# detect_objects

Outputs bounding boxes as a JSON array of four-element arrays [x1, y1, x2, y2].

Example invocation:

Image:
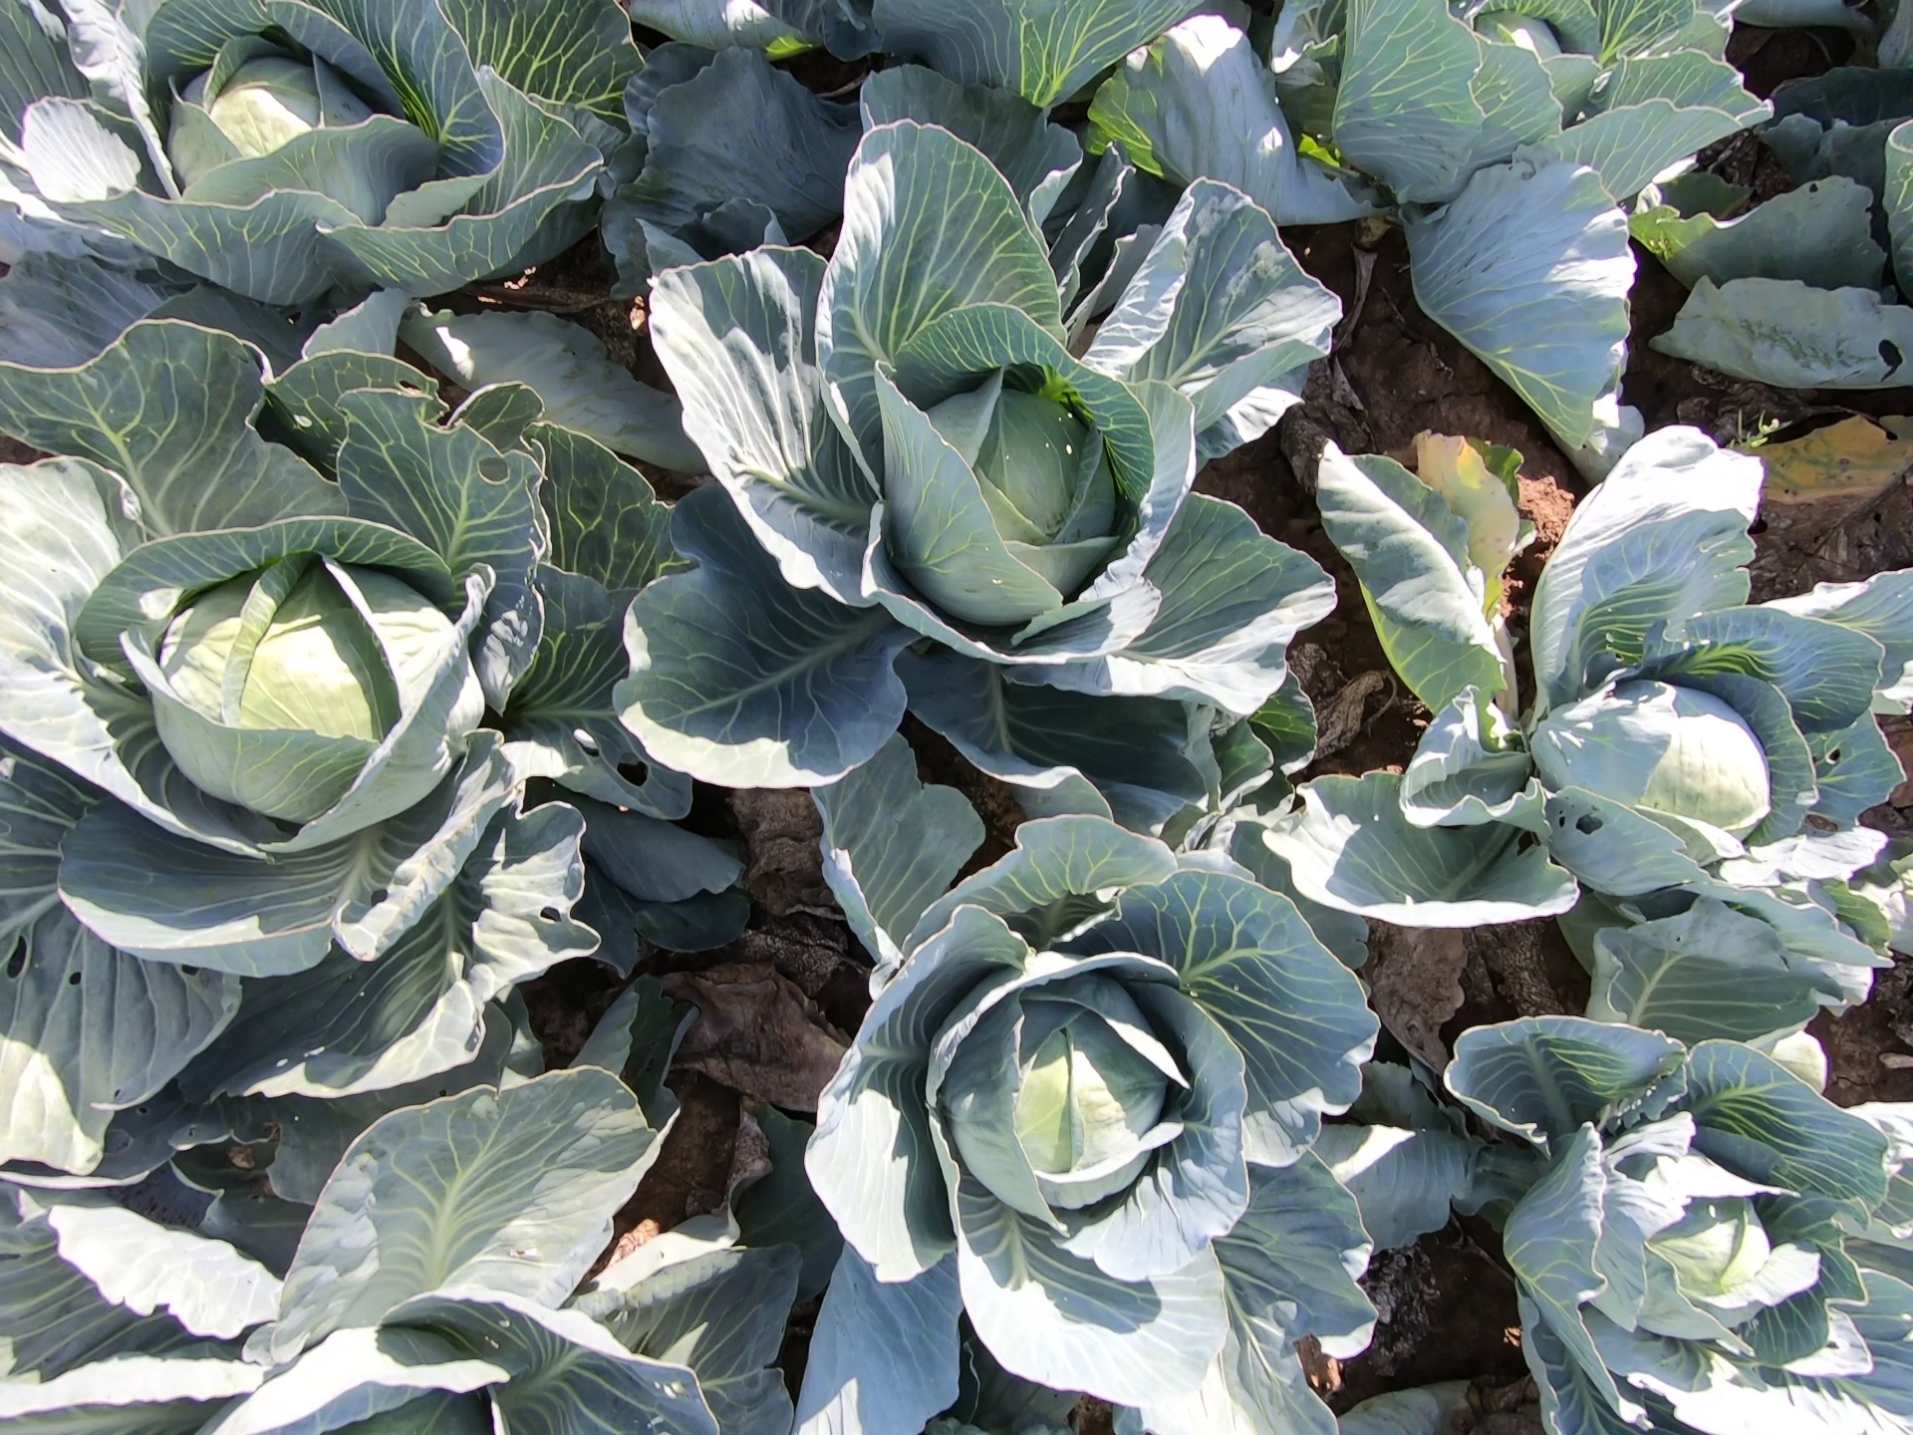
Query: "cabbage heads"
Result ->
[[178, 55, 380, 230], [904, 392, 1111, 601], [1453, 6, 1570, 142], [251, 1330, 489, 1433], [154, 557, 459, 812], [1602, 1147, 1776, 1330], [951, 984, 1166, 1210], [1576, 678, 1772, 855]]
